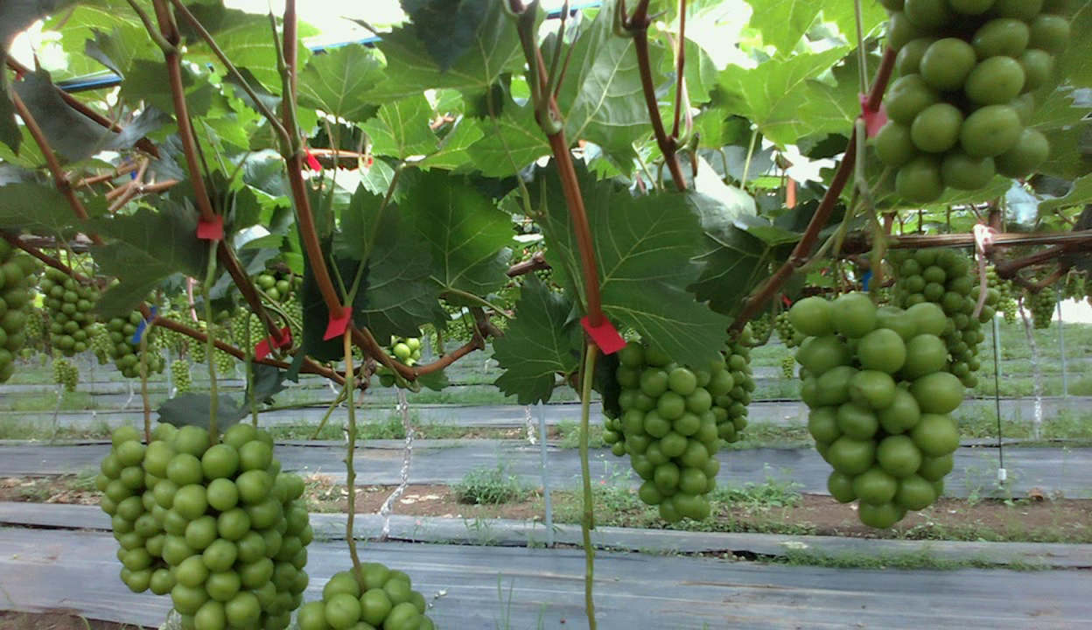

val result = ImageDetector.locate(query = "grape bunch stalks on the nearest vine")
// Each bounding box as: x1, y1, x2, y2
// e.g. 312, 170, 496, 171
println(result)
580, 346, 598, 628
200, 240, 220, 446
342, 329, 365, 598
140, 321, 152, 444
855, 118, 887, 308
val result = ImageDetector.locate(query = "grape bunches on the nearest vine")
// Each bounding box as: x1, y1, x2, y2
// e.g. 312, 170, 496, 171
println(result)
617, 340, 735, 523
787, 294, 963, 528
95, 423, 178, 595
295, 562, 434, 629
152, 423, 314, 629
873, 0, 1071, 204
